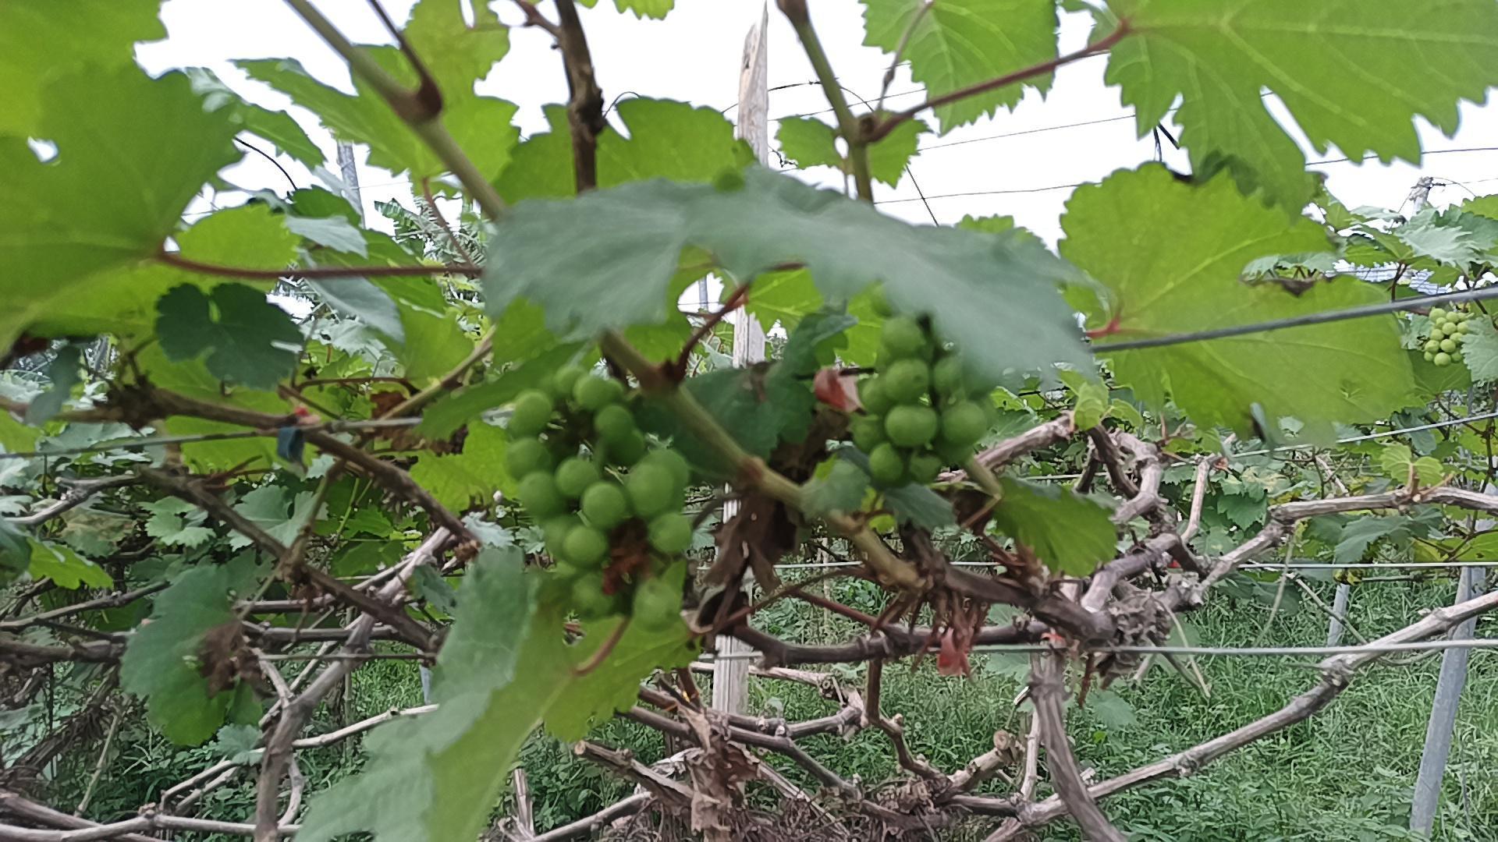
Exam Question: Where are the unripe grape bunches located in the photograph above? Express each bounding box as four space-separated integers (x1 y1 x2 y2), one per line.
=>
851 290 990 482
506 369 690 617
1422 303 1483 366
